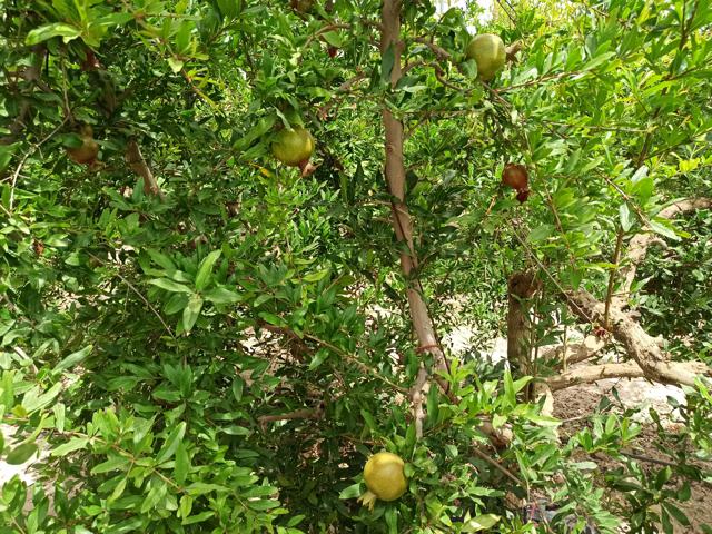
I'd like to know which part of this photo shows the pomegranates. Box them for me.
[502,164,531,201]
[466,33,506,80]
[357,452,409,517]
[68,133,106,171]
[271,126,322,178]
